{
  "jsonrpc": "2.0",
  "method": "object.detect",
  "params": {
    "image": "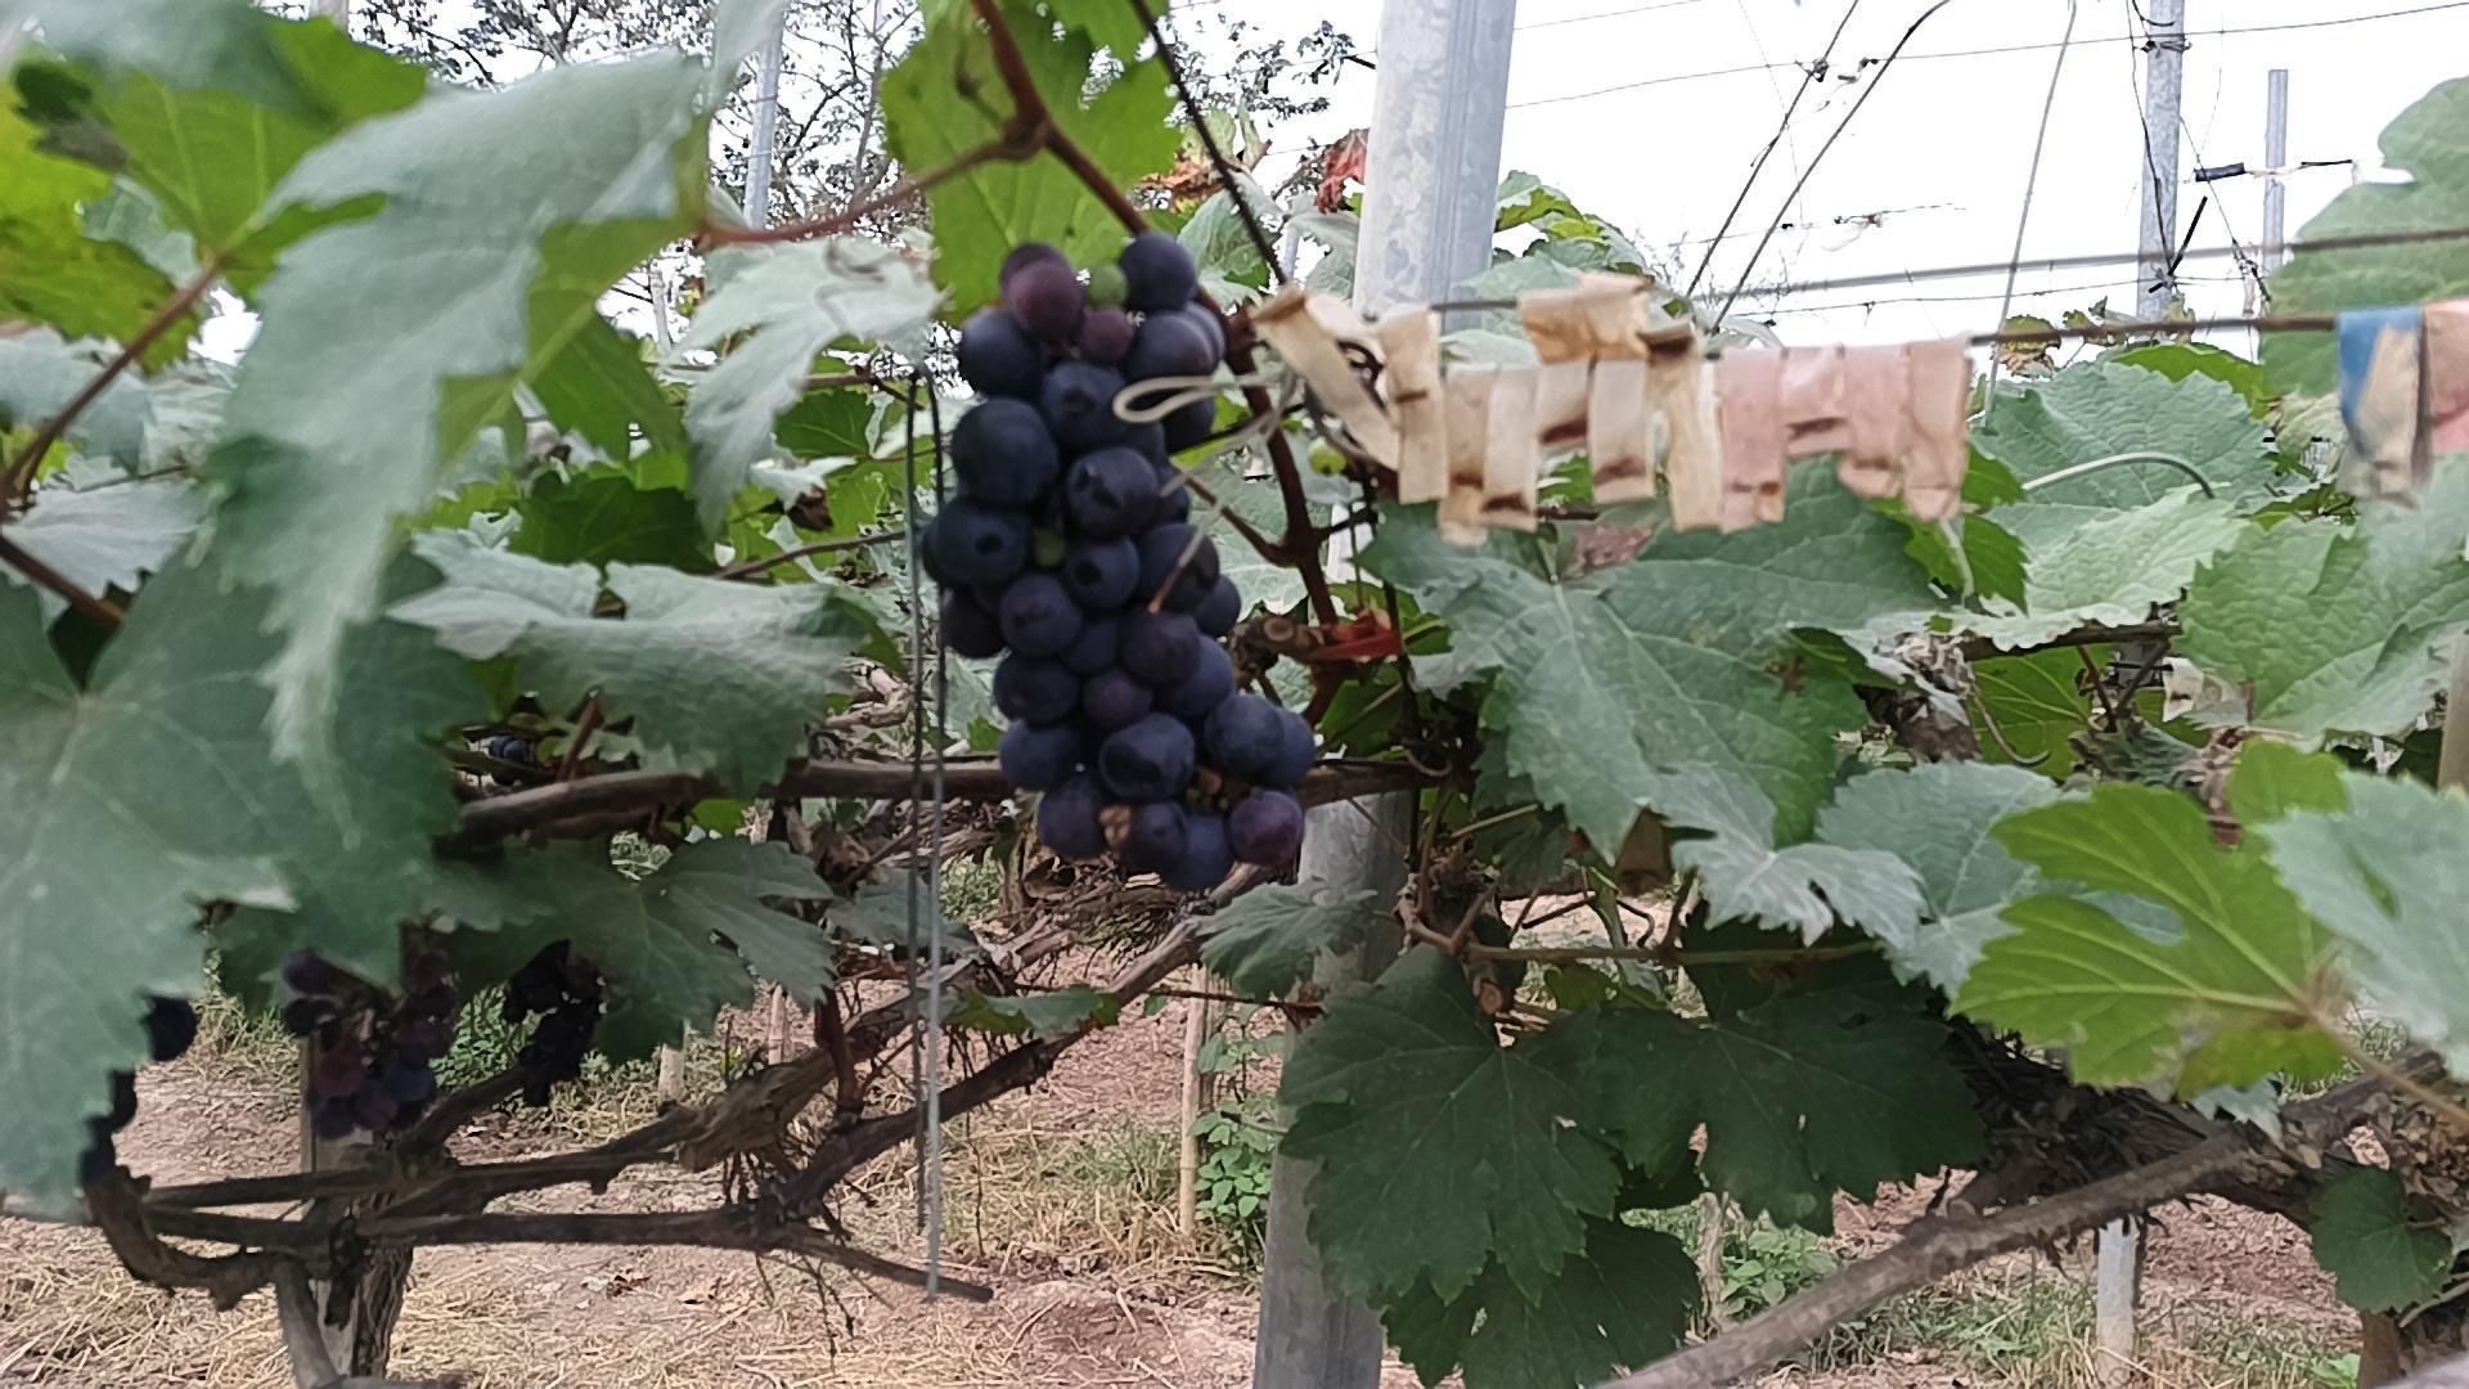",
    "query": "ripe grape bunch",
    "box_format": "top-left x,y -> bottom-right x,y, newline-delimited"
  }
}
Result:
922,235 -> 1313,890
